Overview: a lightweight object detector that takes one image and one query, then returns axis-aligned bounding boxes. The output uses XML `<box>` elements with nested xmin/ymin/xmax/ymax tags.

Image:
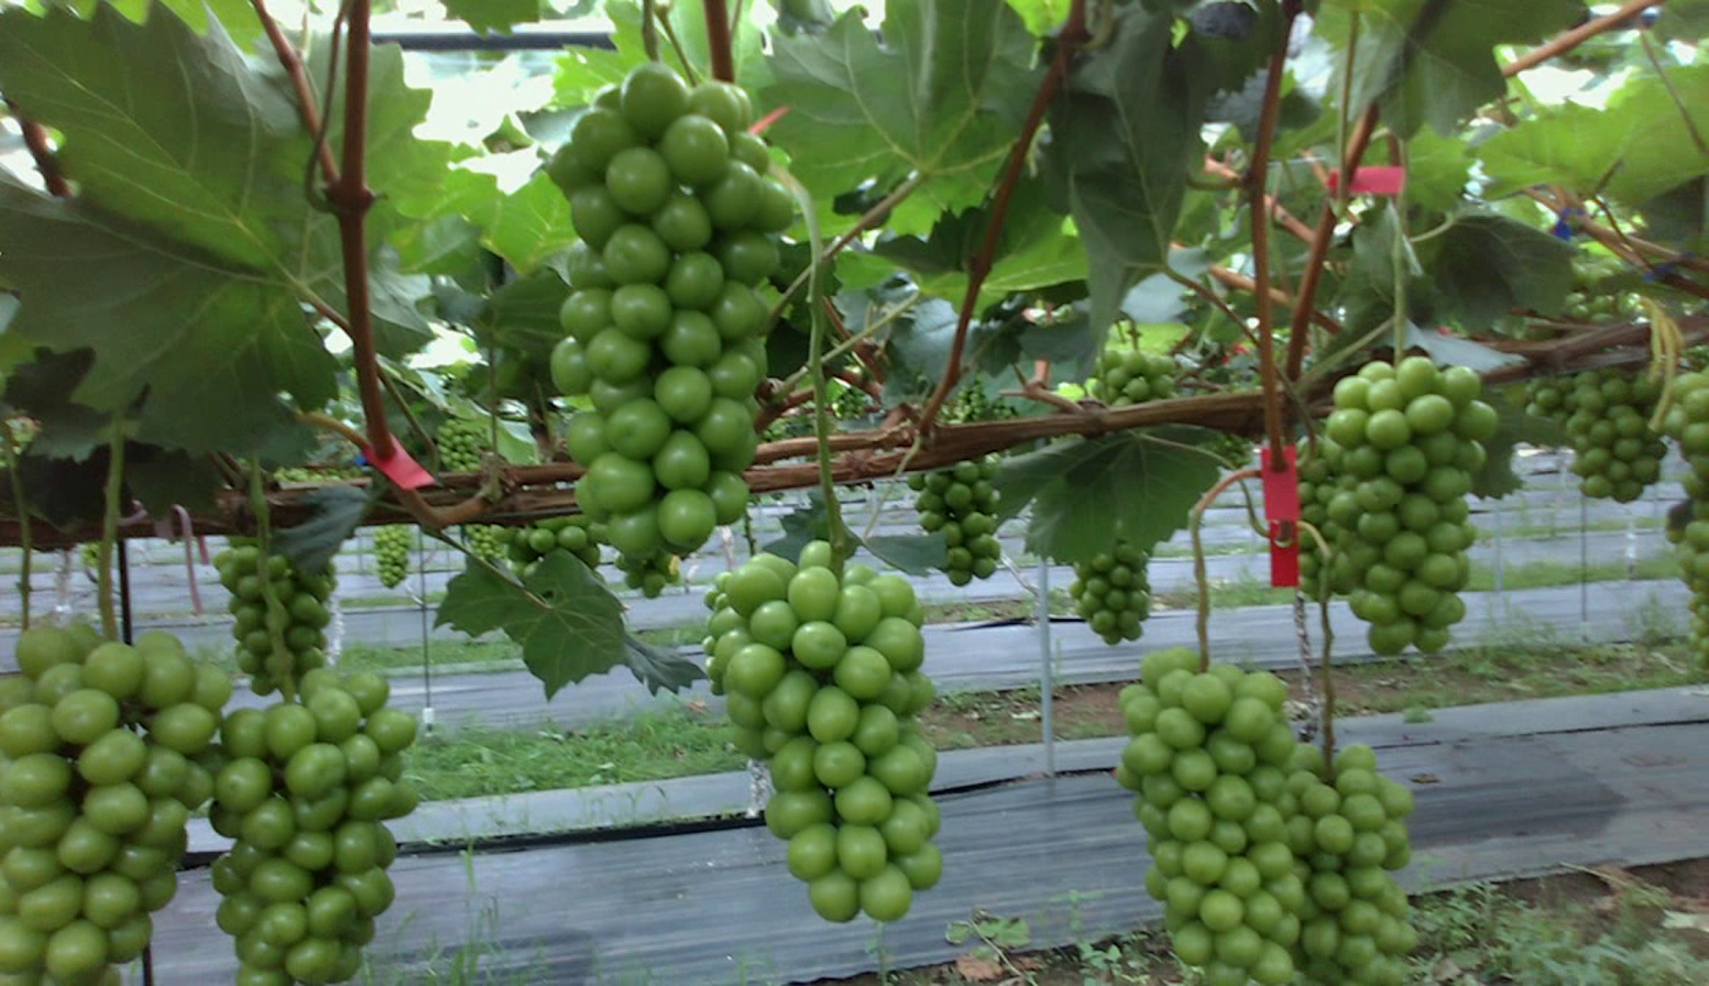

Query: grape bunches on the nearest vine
<box><xmin>1326</xmin><ymin>359</ymin><xmax>1499</xmax><ymax>653</ymax></box>
<box><xmin>208</xmin><ymin>668</ymin><xmax>419</xmax><ymax>985</ymax></box>
<box><xmin>1116</xmin><ymin>646</ymin><xmax>1304</xmax><ymax>985</ymax></box>
<box><xmin>10</xmin><ymin>624</ymin><xmax>230</xmax><ymax>985</ymax></box>
<box><xmin>1274</xmin><ymin>742</ymin><xmax>1417</xmax><ymax>985</ymax></box>
<box><xmin>712</xmin><ymin>540</ymin><xmax>944</xmax><ymax>923</ymax></box>
<box><xmin>544</xmin><ymin>60</ymin><xmax>792</xmax><ymax>563</ymax></box>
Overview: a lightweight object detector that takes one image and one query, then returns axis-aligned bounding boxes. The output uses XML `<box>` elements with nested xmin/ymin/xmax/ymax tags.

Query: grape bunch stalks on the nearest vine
<box><xmin>248</xmin><ymin>456</ymin><xmax>297</xmax><ymax>704</ymax></box>
<box><xmin>1300</xmin><ymin>520</ymin><xmax>1335</xmax><ymax>782</ymax></box>
<box><xmin>99</xmin><ymin>412</ymin><xmax>123</xmax><ymax>644</ymax></box>
<box><xmin>1190</xmin><ymin>467</ymin><xmax>1261</xmax><ymax>672</ymax></box>
<box><xmin>1368</xmin><ymin>126</ymin><xmax>1406</xmax><ymax>364</ymax></box>
<box><xmin>767</xmin><ymin>157</ymin><xmax>853</xmax><ymax>585</ymax></box>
